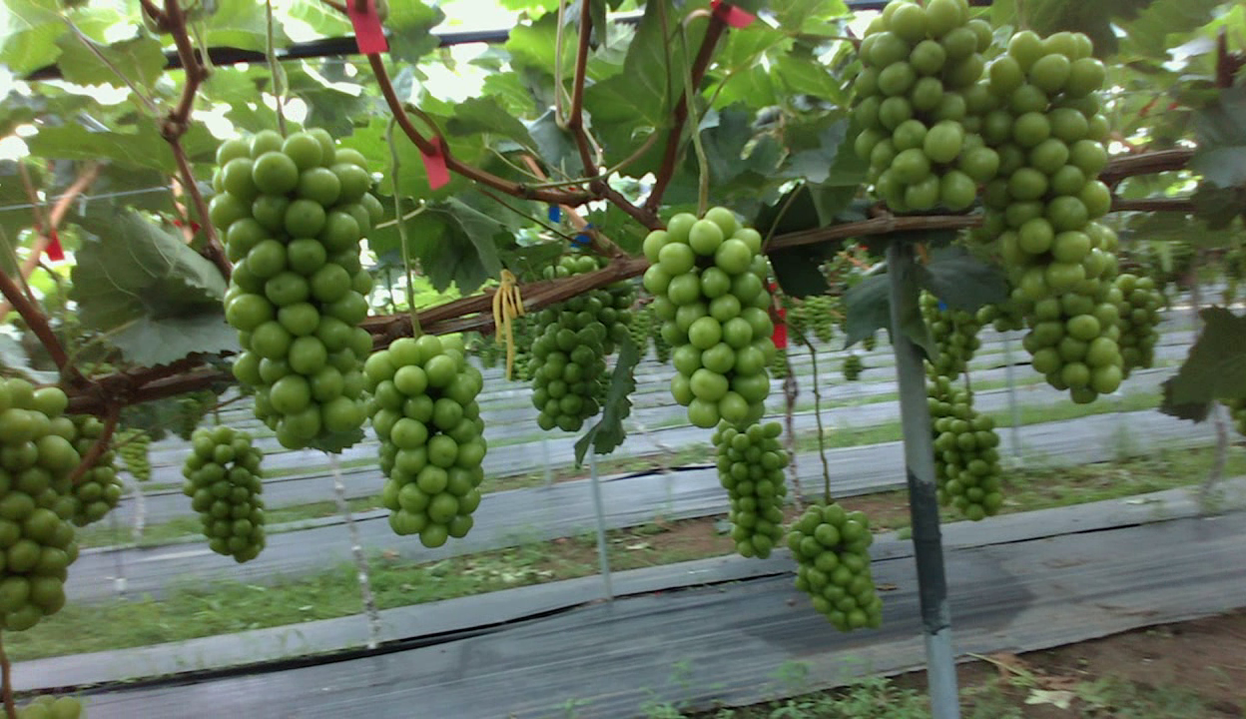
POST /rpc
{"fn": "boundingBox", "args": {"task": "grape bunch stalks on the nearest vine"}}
[679,9,715,218]
[267,2,287,138]
[384,118,422,340]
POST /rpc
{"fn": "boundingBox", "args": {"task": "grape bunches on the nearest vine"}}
[1,376,78,630]
[854,1,999,214]
[207,129,382,451]
[966,31,1119,287]
[641,207,777,427]
[972,208,1123,403]
[361,331,486,547]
